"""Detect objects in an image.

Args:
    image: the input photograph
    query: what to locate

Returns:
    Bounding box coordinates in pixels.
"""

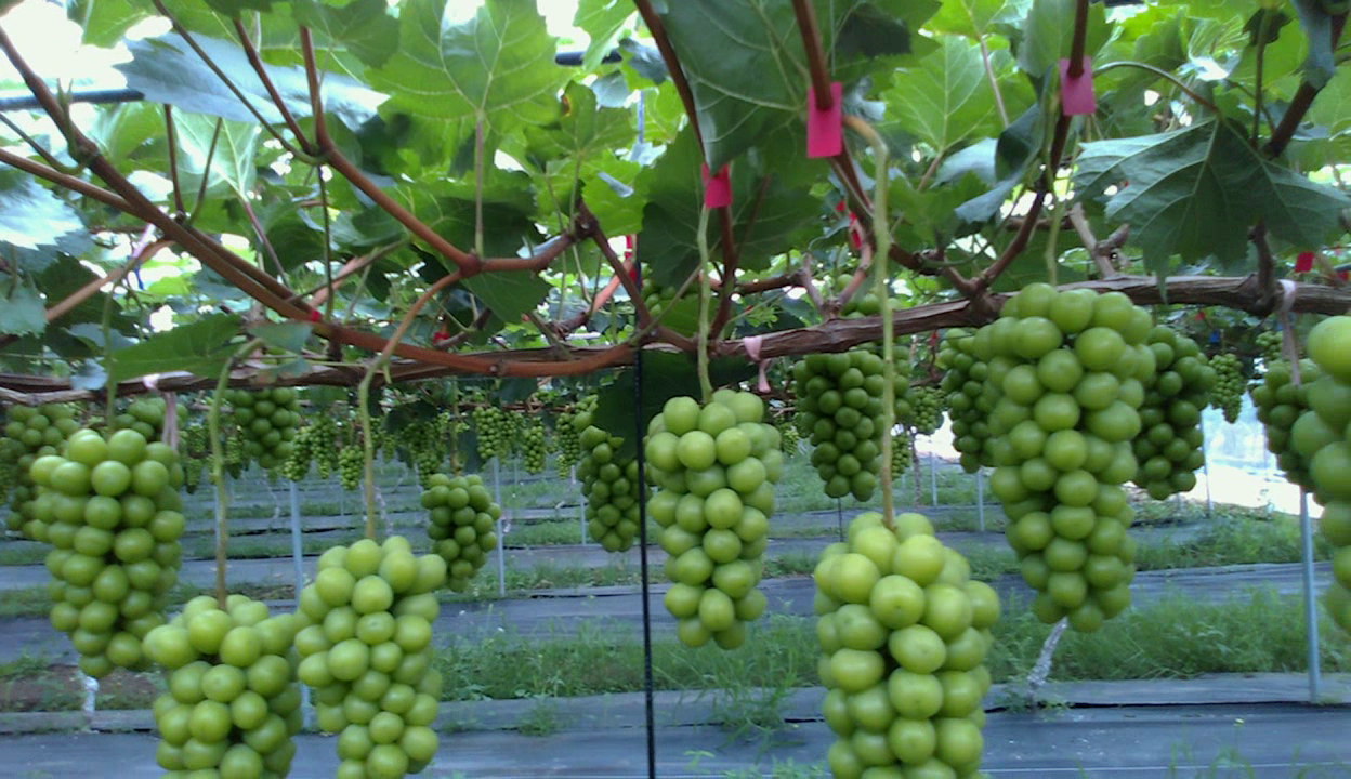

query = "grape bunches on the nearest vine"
[972,282,1156,633]
[142,593,303,778]
[29,428,185,678]
[290,534,445,778]
[814,512,999,777]
[645,388,783,649]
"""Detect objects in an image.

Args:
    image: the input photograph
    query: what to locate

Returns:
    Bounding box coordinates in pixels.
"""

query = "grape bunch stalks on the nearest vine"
[1044,92,1064,287]
[359,269,463,541]
[209,336,262,610]
[697,204,712,406]
[102,241,154,439]
[843,115,896,529]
